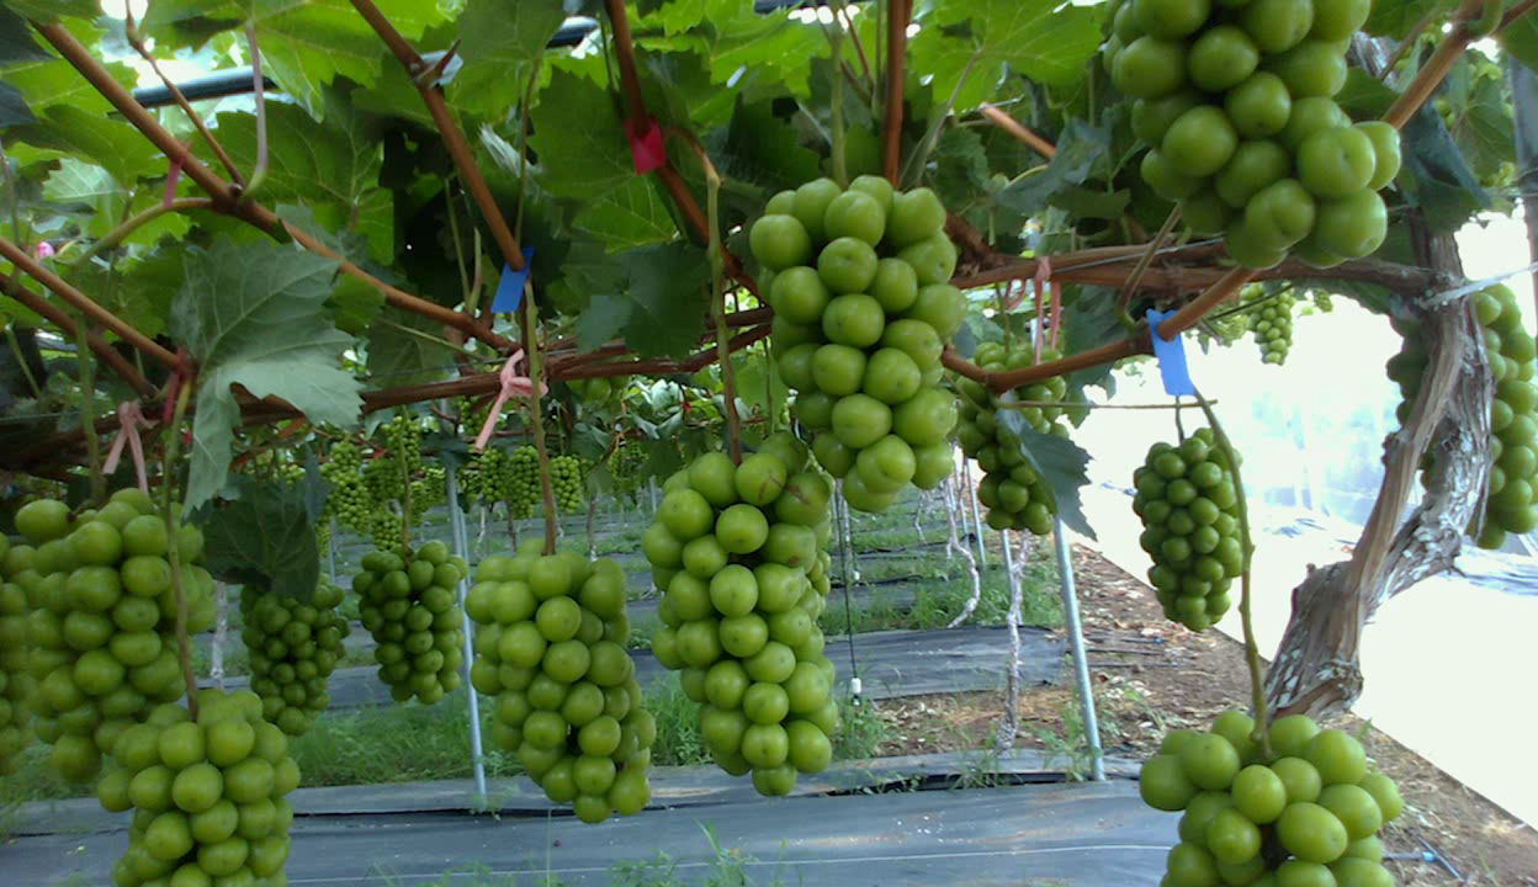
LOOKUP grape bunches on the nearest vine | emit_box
[1140,710,1404,886]
[466,538,657,824]
[99,689,303,885]
[1099,0,1405,271]
[641,430,838,798]
[1133,427,1240,632]
[350,541,468,703]
[16,485,181,785]
[751,172,967,512]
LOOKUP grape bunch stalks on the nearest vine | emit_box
[1176,408,1183,441]
[397,407,413,561]
[71,312,107,510]
[525,277,557,556]
[829,21,847,191]
[664,126,743,466]
[1195,387,1272,759]
[161,381,196,721]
